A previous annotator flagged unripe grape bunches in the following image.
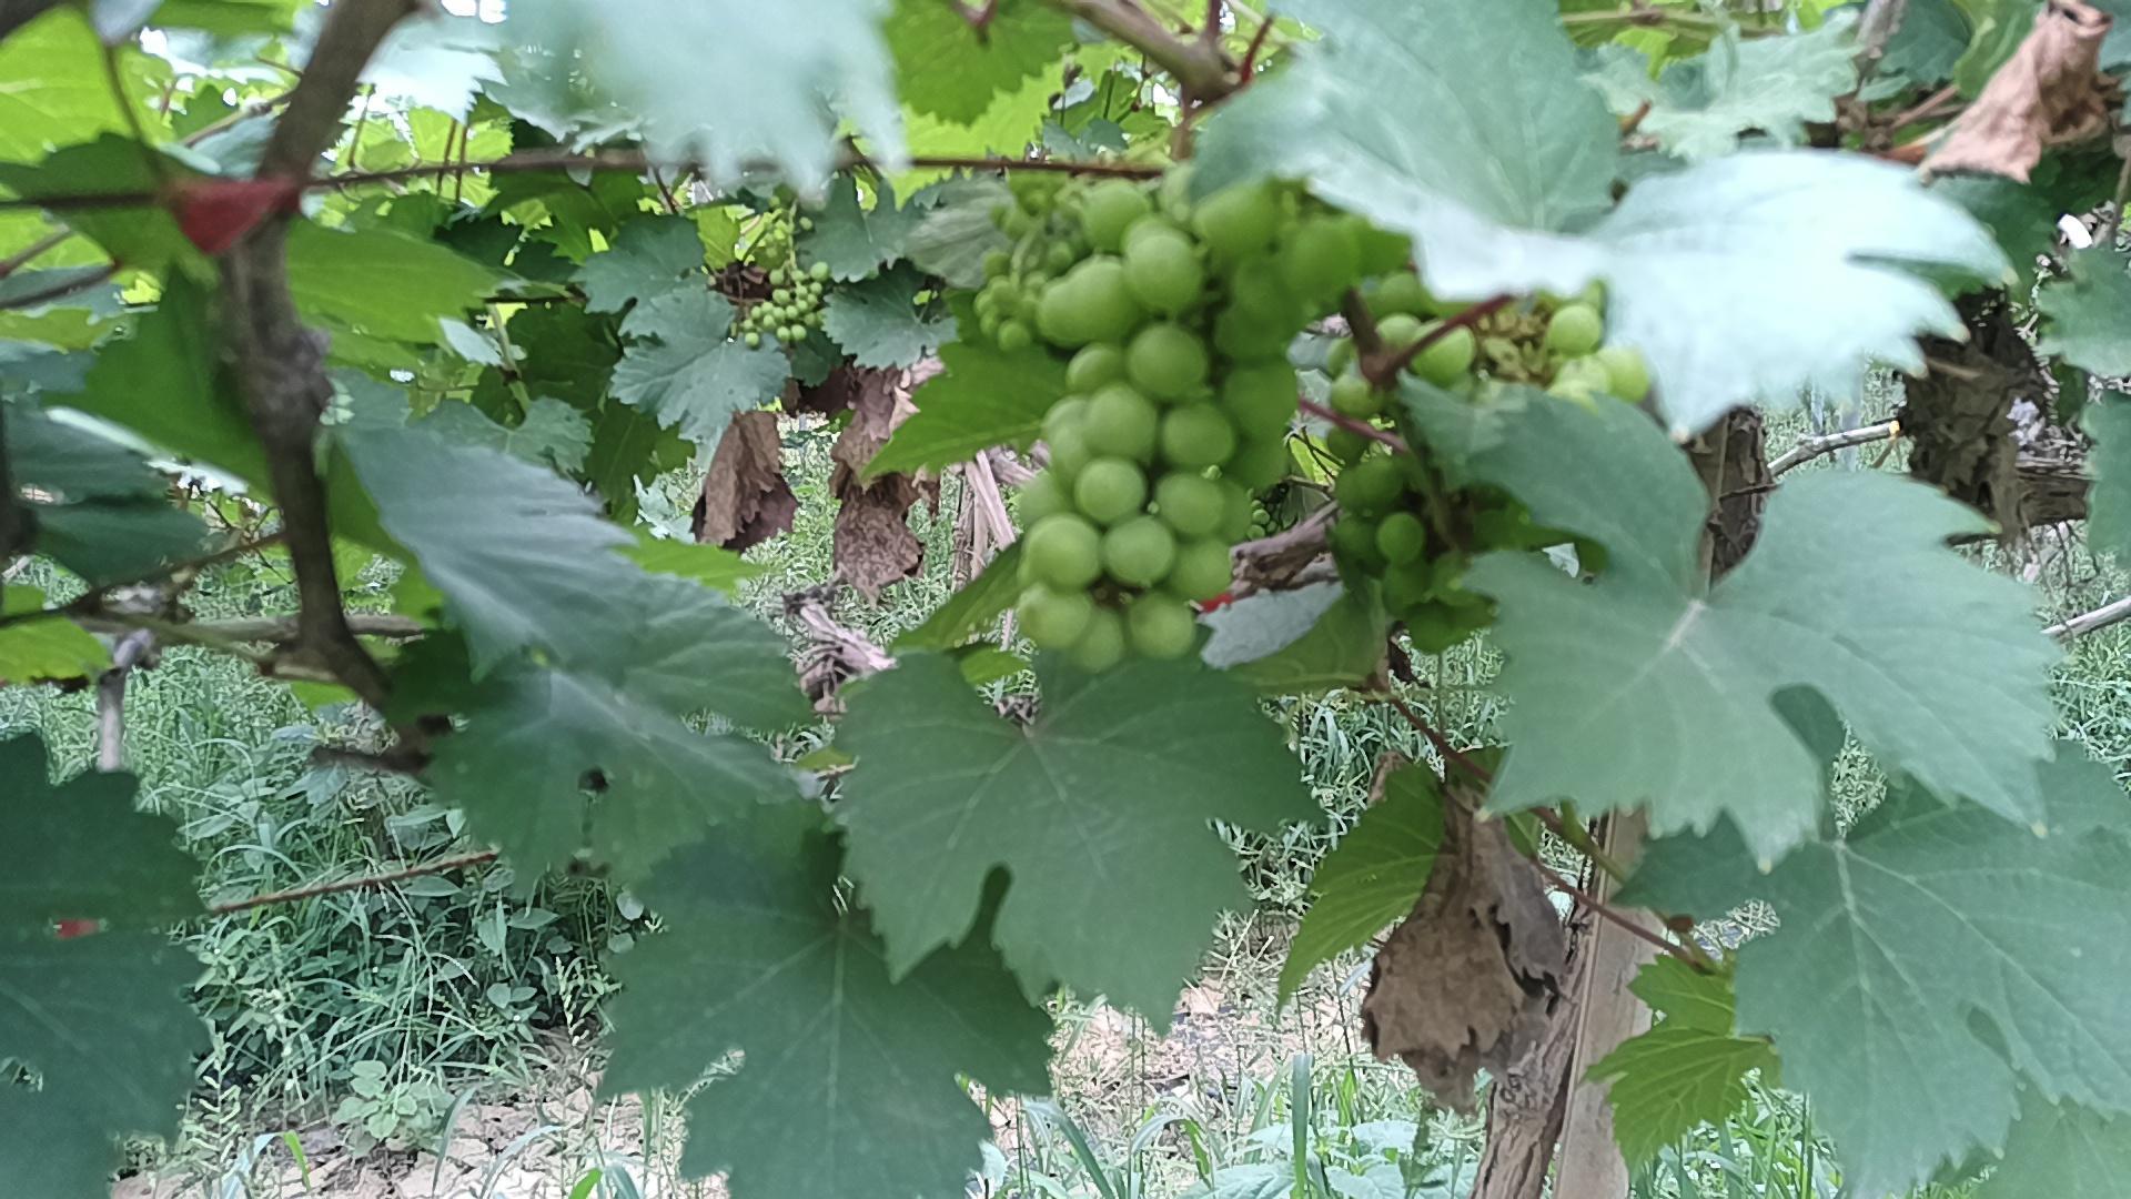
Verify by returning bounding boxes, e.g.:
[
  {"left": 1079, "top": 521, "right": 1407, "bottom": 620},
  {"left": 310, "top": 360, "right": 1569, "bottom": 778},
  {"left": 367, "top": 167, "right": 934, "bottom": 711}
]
[
  {"left": 1014, "top": 160, "right": 1357, "bottom": 671},
  {"left": 1324, "top": 272, "right": 1648, "bottom": 651},
  {"left": 973, "top": 175, "right": 1091, "bottom": 351},
  {"left": 727, "top": 206, "right": 830, "bottom": 347}
]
